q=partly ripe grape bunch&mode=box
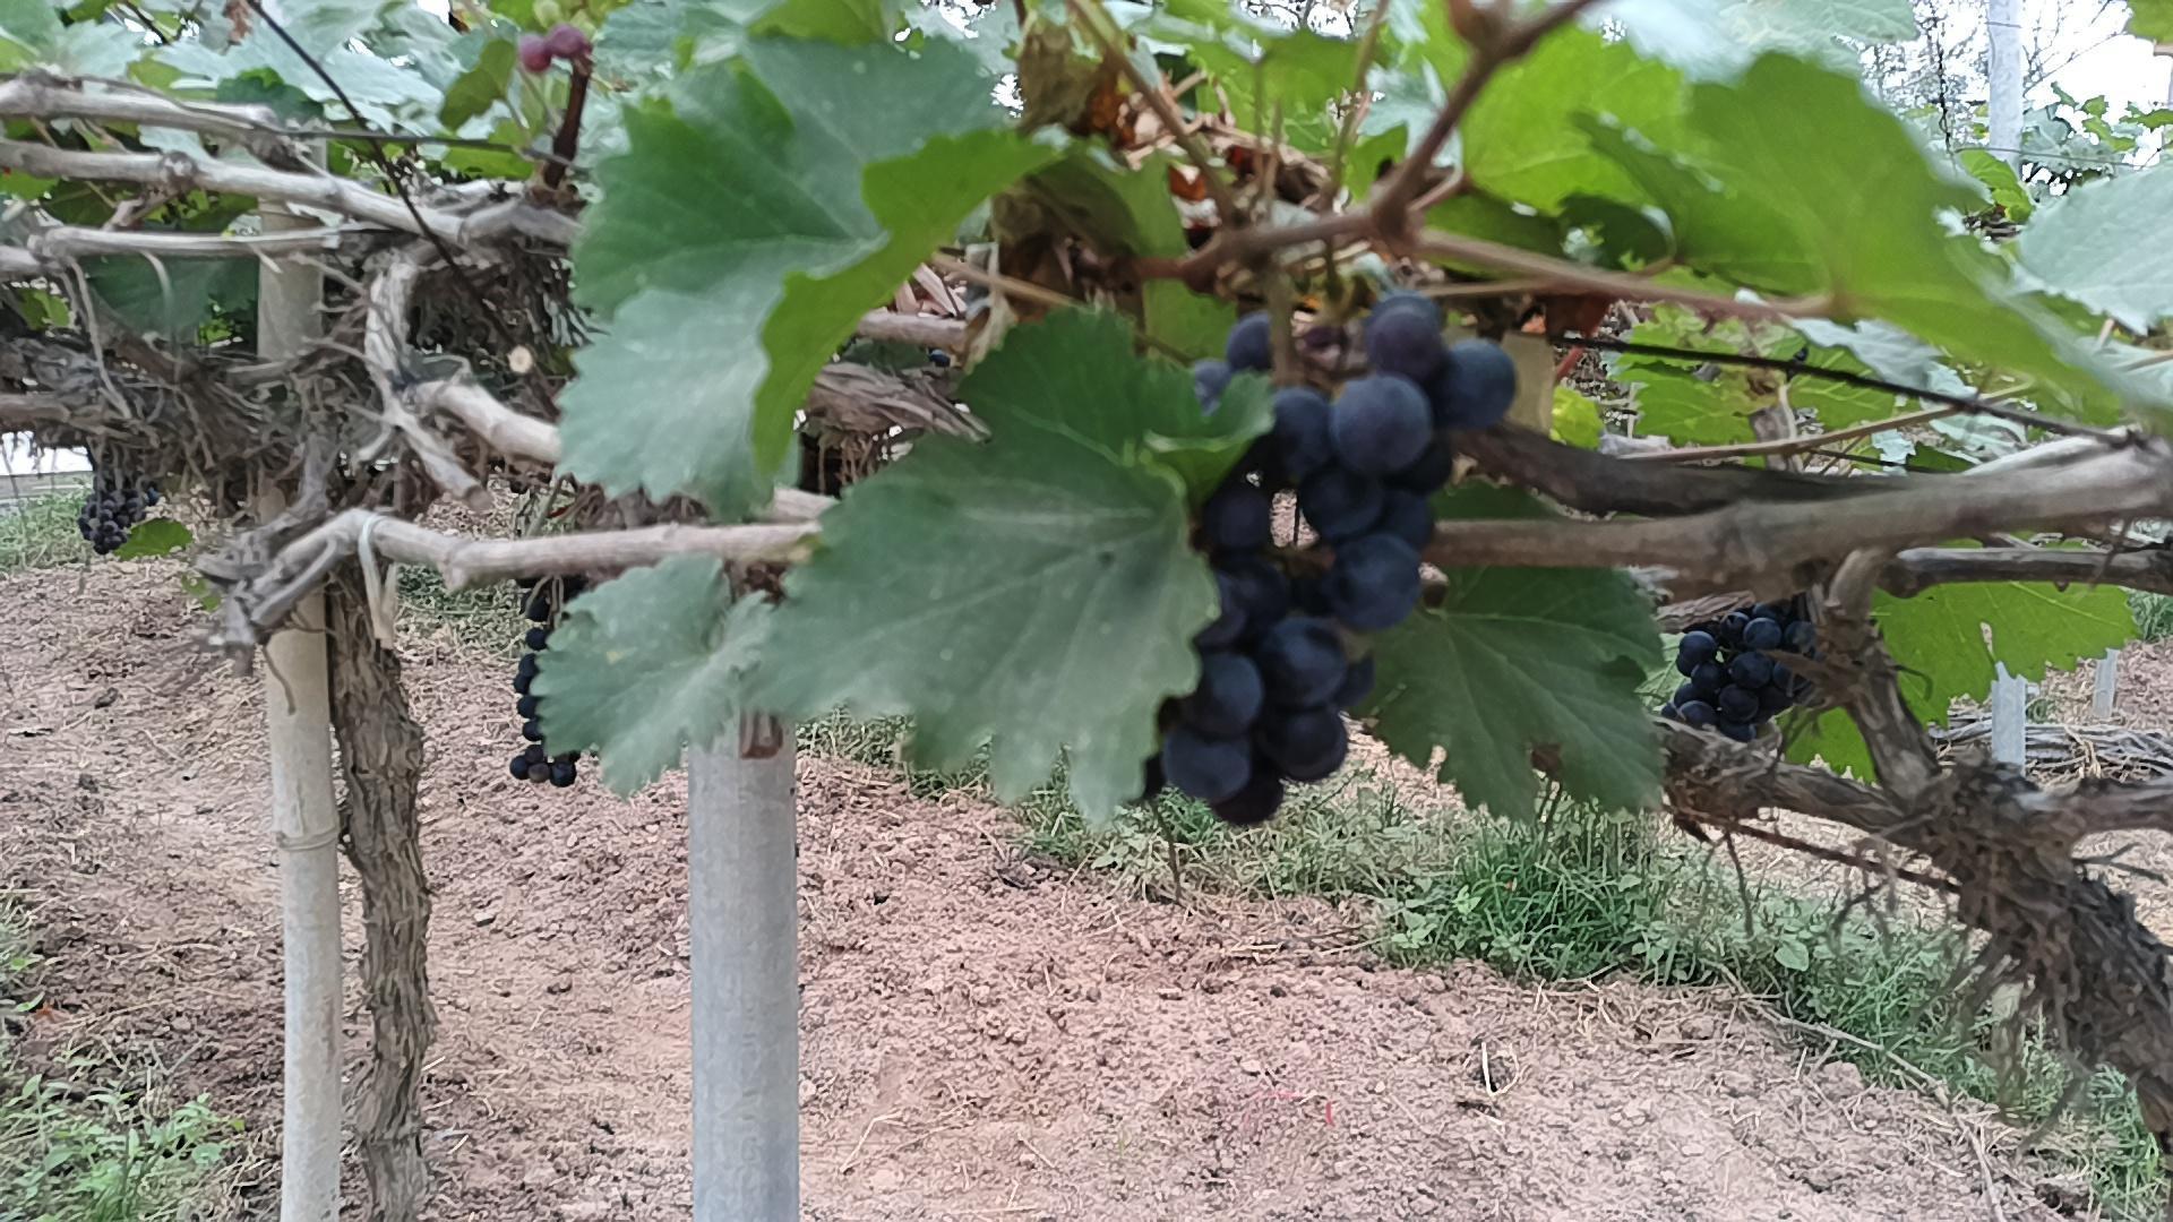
[517,0,624,74]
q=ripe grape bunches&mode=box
[1160,293,1514,824]
[509,576,591,786]
[76,481,163,556]
[1661,594,1816,741]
